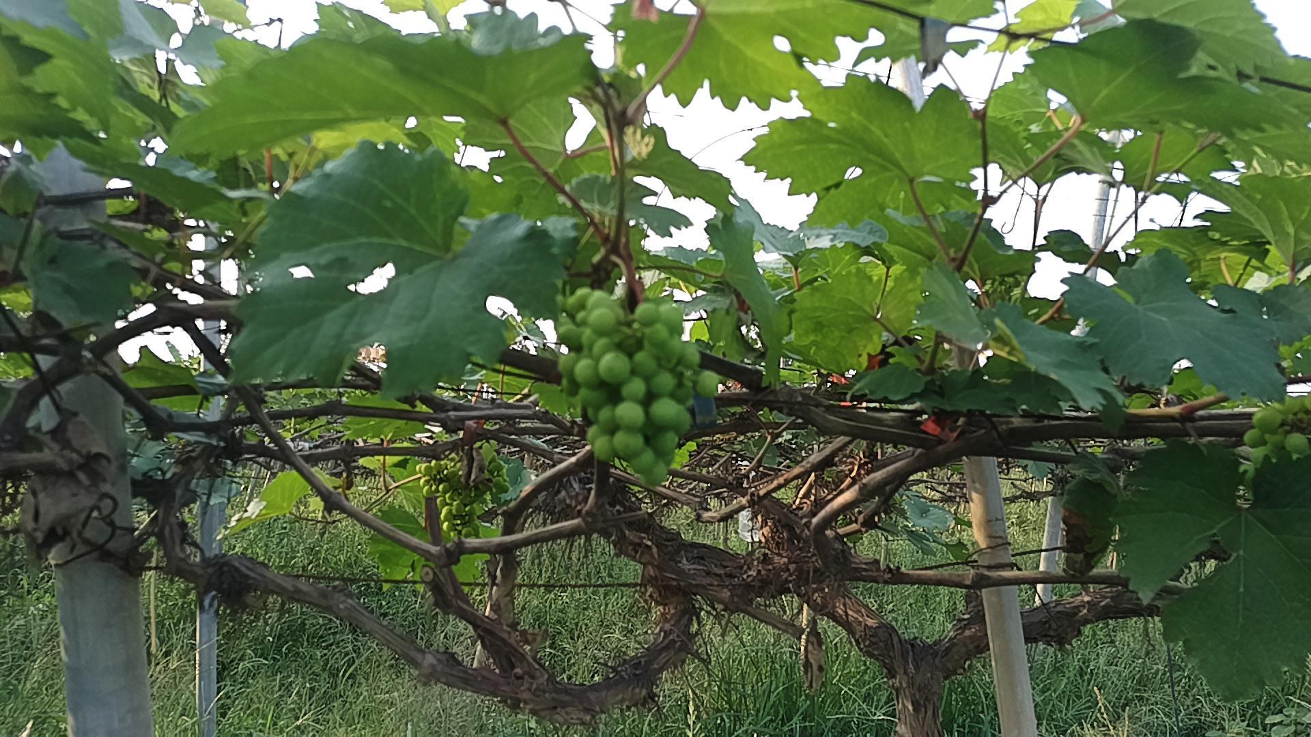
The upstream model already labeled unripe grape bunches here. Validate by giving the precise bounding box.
[417,445,506,539]
[1244,395,1310,467]
[558,288,722,482]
